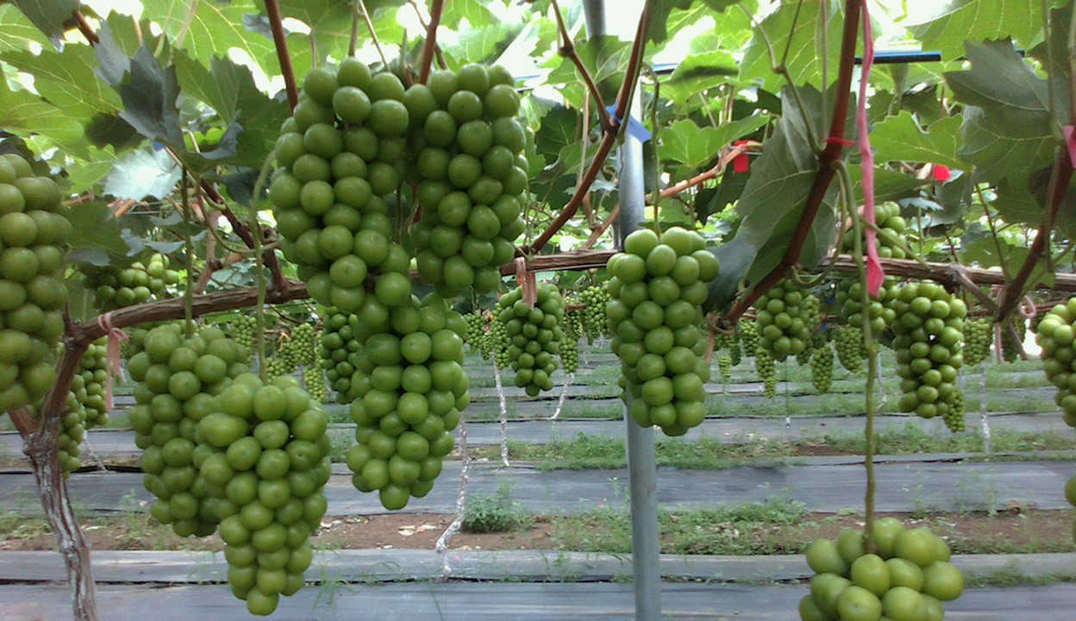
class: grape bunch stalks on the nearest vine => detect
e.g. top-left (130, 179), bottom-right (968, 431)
top-left (641, 60), bottom-right (660, 237)
top-left (247, 150), bottom-right (275, 384)
top-left (833, 159), bottom-right (878, 555)
top-left (181, 164), bottom-right (193, 339)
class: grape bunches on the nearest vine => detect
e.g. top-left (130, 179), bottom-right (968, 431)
top-left (0, 153), bottom-right (73, 413)
top-left (404, 61), bottom-right (529, 298)
top-left (346, 292), bottom-right (471, 510)
top-left (606, 225), bottom-right (720, 436)
top-left (191, 372), bottom-right (330, 614)
top-left (799, 517), bottom-right (961, 620)
top-left (128, 323), bottom-right (250, 536)
top-left (269, 56), bottom-right (410, 327)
